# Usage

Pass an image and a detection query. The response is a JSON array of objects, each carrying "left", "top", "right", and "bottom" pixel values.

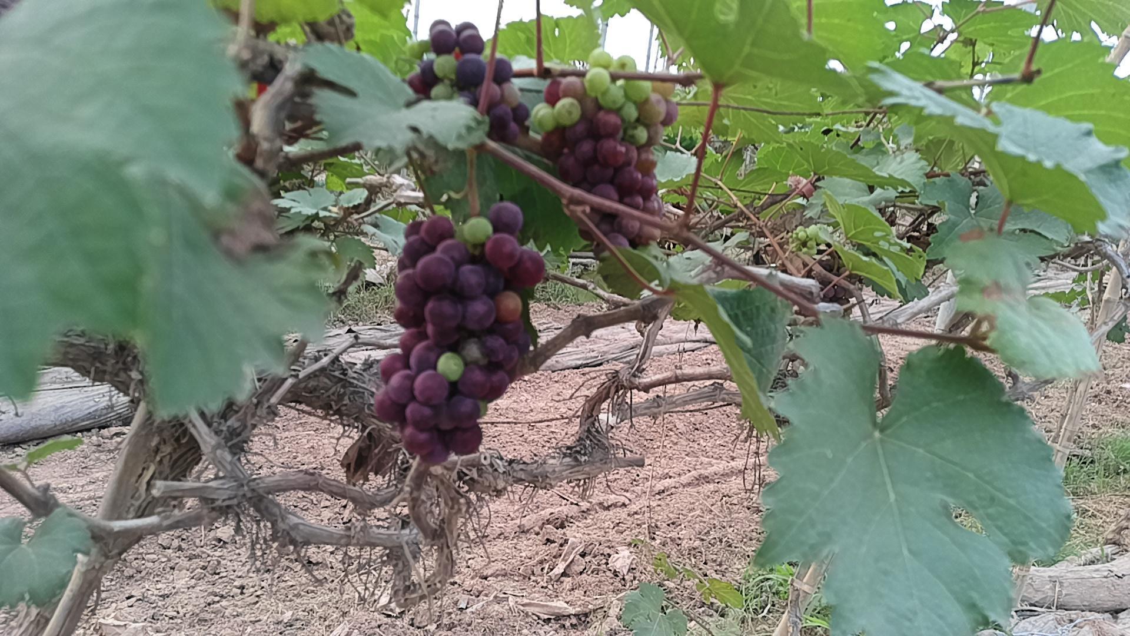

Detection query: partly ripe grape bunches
[
  {"left": 531, "top": 49, "right": 678, "bottom": 259},
  {"left": 406, "top": 20, "right": 529, "bottom": 143},
  {"left": 374, "top": 201, "right": 545, "bottom": 464},
  {"left": 806, "top": 258, "right": 858, "bottom": 306}
]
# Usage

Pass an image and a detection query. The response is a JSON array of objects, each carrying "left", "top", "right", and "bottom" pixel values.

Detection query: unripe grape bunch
[{"left": 789, "top": 225, "right": 819, "bottom": 256}]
